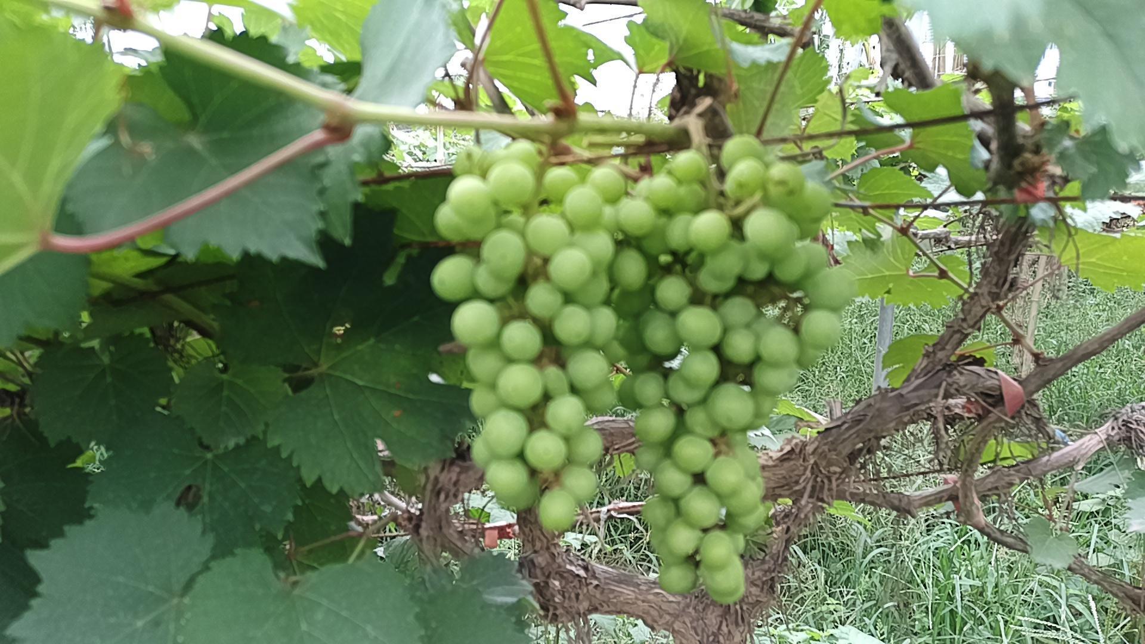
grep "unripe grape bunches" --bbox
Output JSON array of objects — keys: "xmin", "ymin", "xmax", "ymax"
[
  {"xmin": 431, "ymin": 141, "xmax": 626, "ymax": 532},
  {"xmin": 606, "ymin": 136, "xmax": 856, "ymax": 603}
]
